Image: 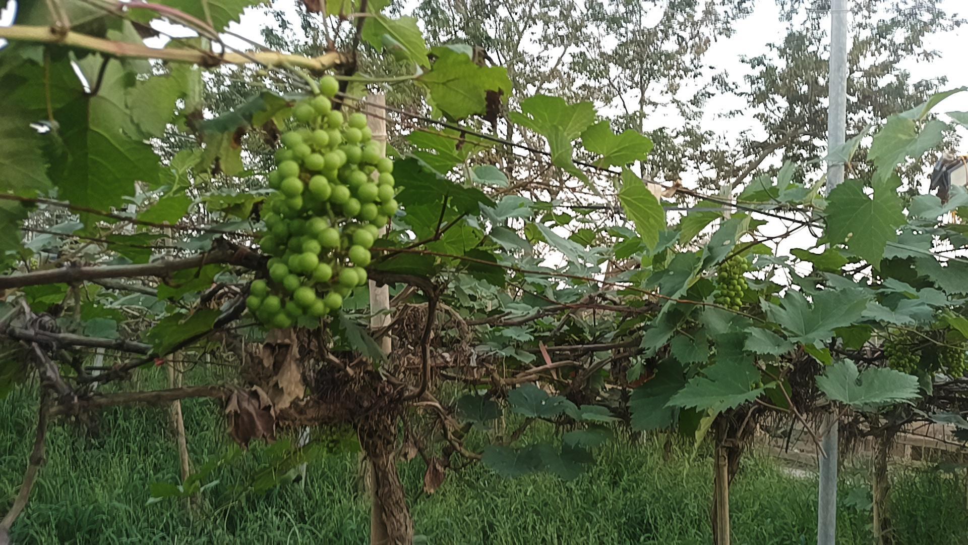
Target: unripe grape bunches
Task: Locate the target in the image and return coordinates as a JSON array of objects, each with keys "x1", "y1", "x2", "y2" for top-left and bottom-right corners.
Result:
[
  {"x1": 312, "y1": 424, "x2": 357, "y2": 455},
  {"x1": 714, "y1": 256, "x2": 750, "y2": 310},
  {"x1": 938, "y1": 344, "x2": 967, "y2": 379},
  {"x1": 246, "y1": 77, "x2": 397, "y2": 327},
  {"x1": 883, "y1": 334, "x2": 922, "y2": 376}
]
